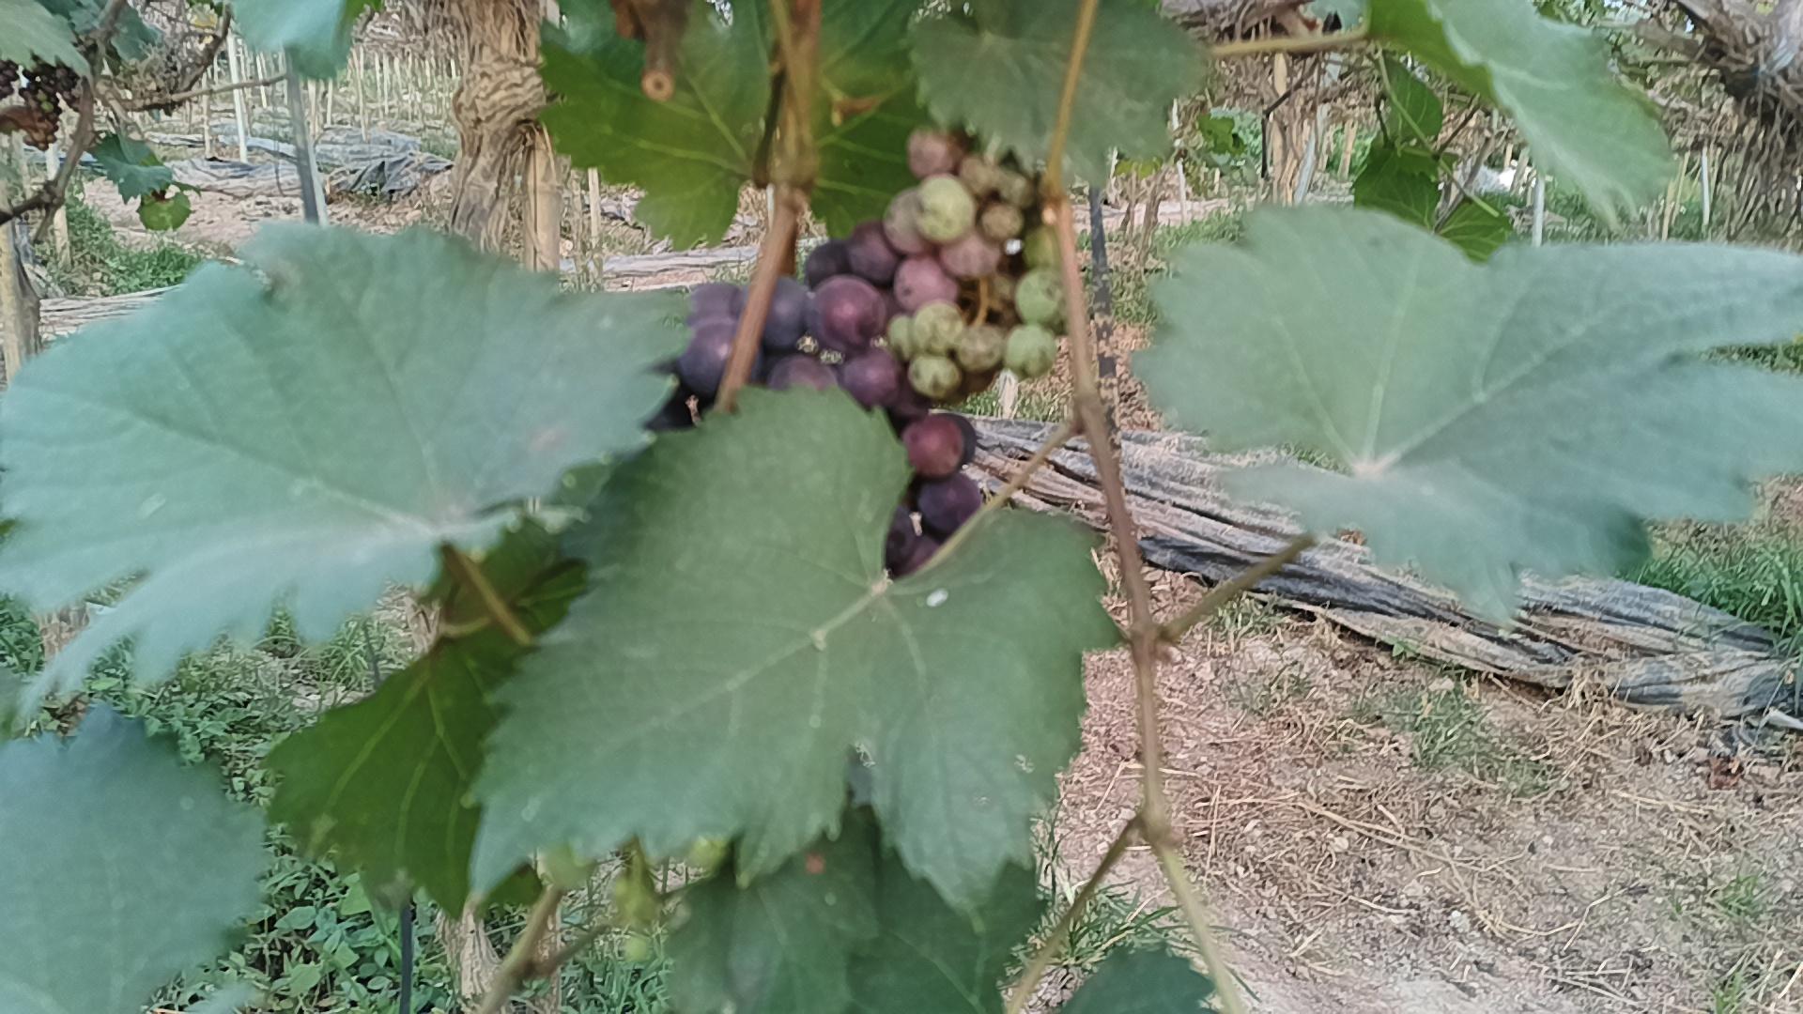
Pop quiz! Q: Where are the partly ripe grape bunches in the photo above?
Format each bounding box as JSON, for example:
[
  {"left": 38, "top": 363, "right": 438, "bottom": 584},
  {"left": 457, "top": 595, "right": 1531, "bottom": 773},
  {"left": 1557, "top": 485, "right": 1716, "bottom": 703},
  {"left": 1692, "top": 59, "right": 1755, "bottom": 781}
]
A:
[
  {"left": 16, "top": 62, "right": 78, "bottom": 149},
  {"left": 647, "top": 128, "right": 1061, "bottom": 575}
]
